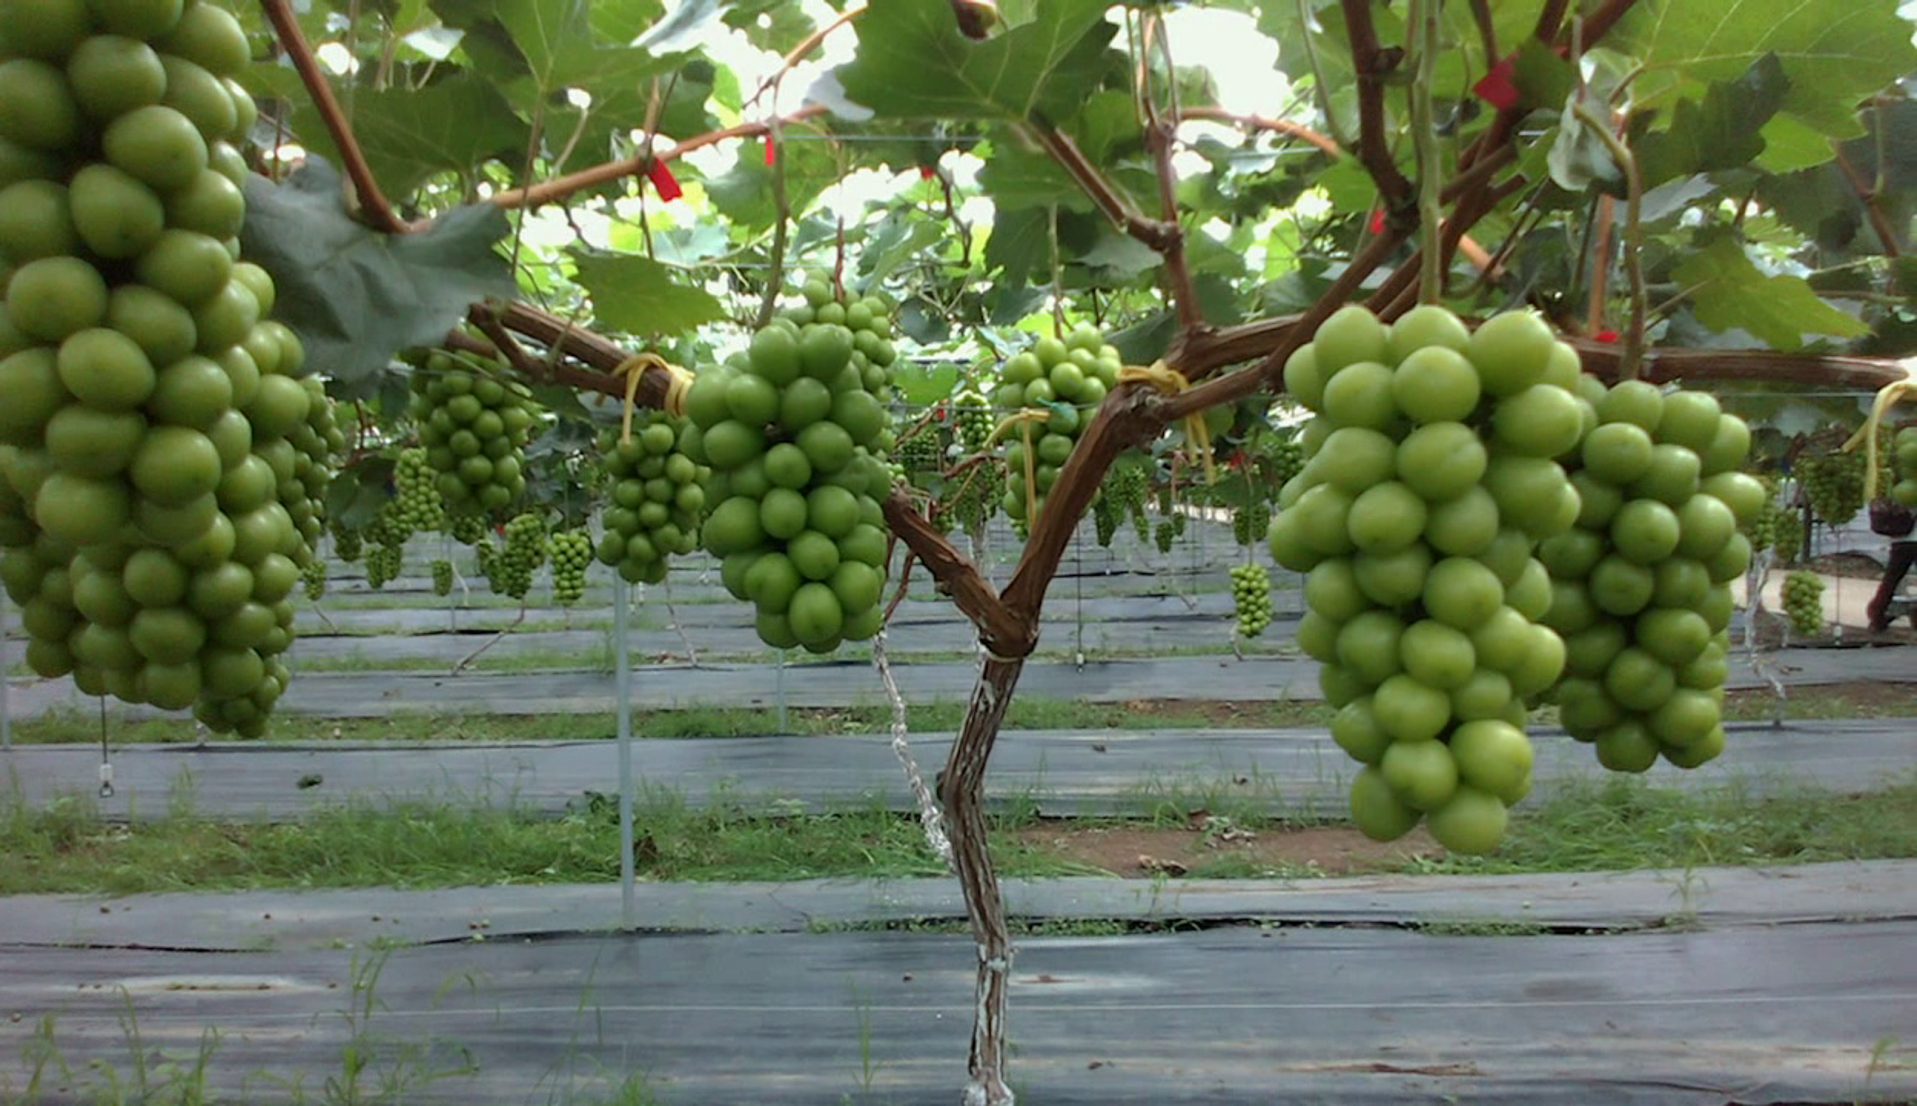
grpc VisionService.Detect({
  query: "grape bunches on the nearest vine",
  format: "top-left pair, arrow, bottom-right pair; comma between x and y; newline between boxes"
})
679,316 -> 892,656
1267,307 -> 1584,853
1530,375 -> 1768,771
0,0 -> 309,711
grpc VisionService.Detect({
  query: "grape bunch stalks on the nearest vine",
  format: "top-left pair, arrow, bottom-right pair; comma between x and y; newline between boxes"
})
756,115 -> 786,332
1416,2 -> 1439,306
1570,101 -> 1645,382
